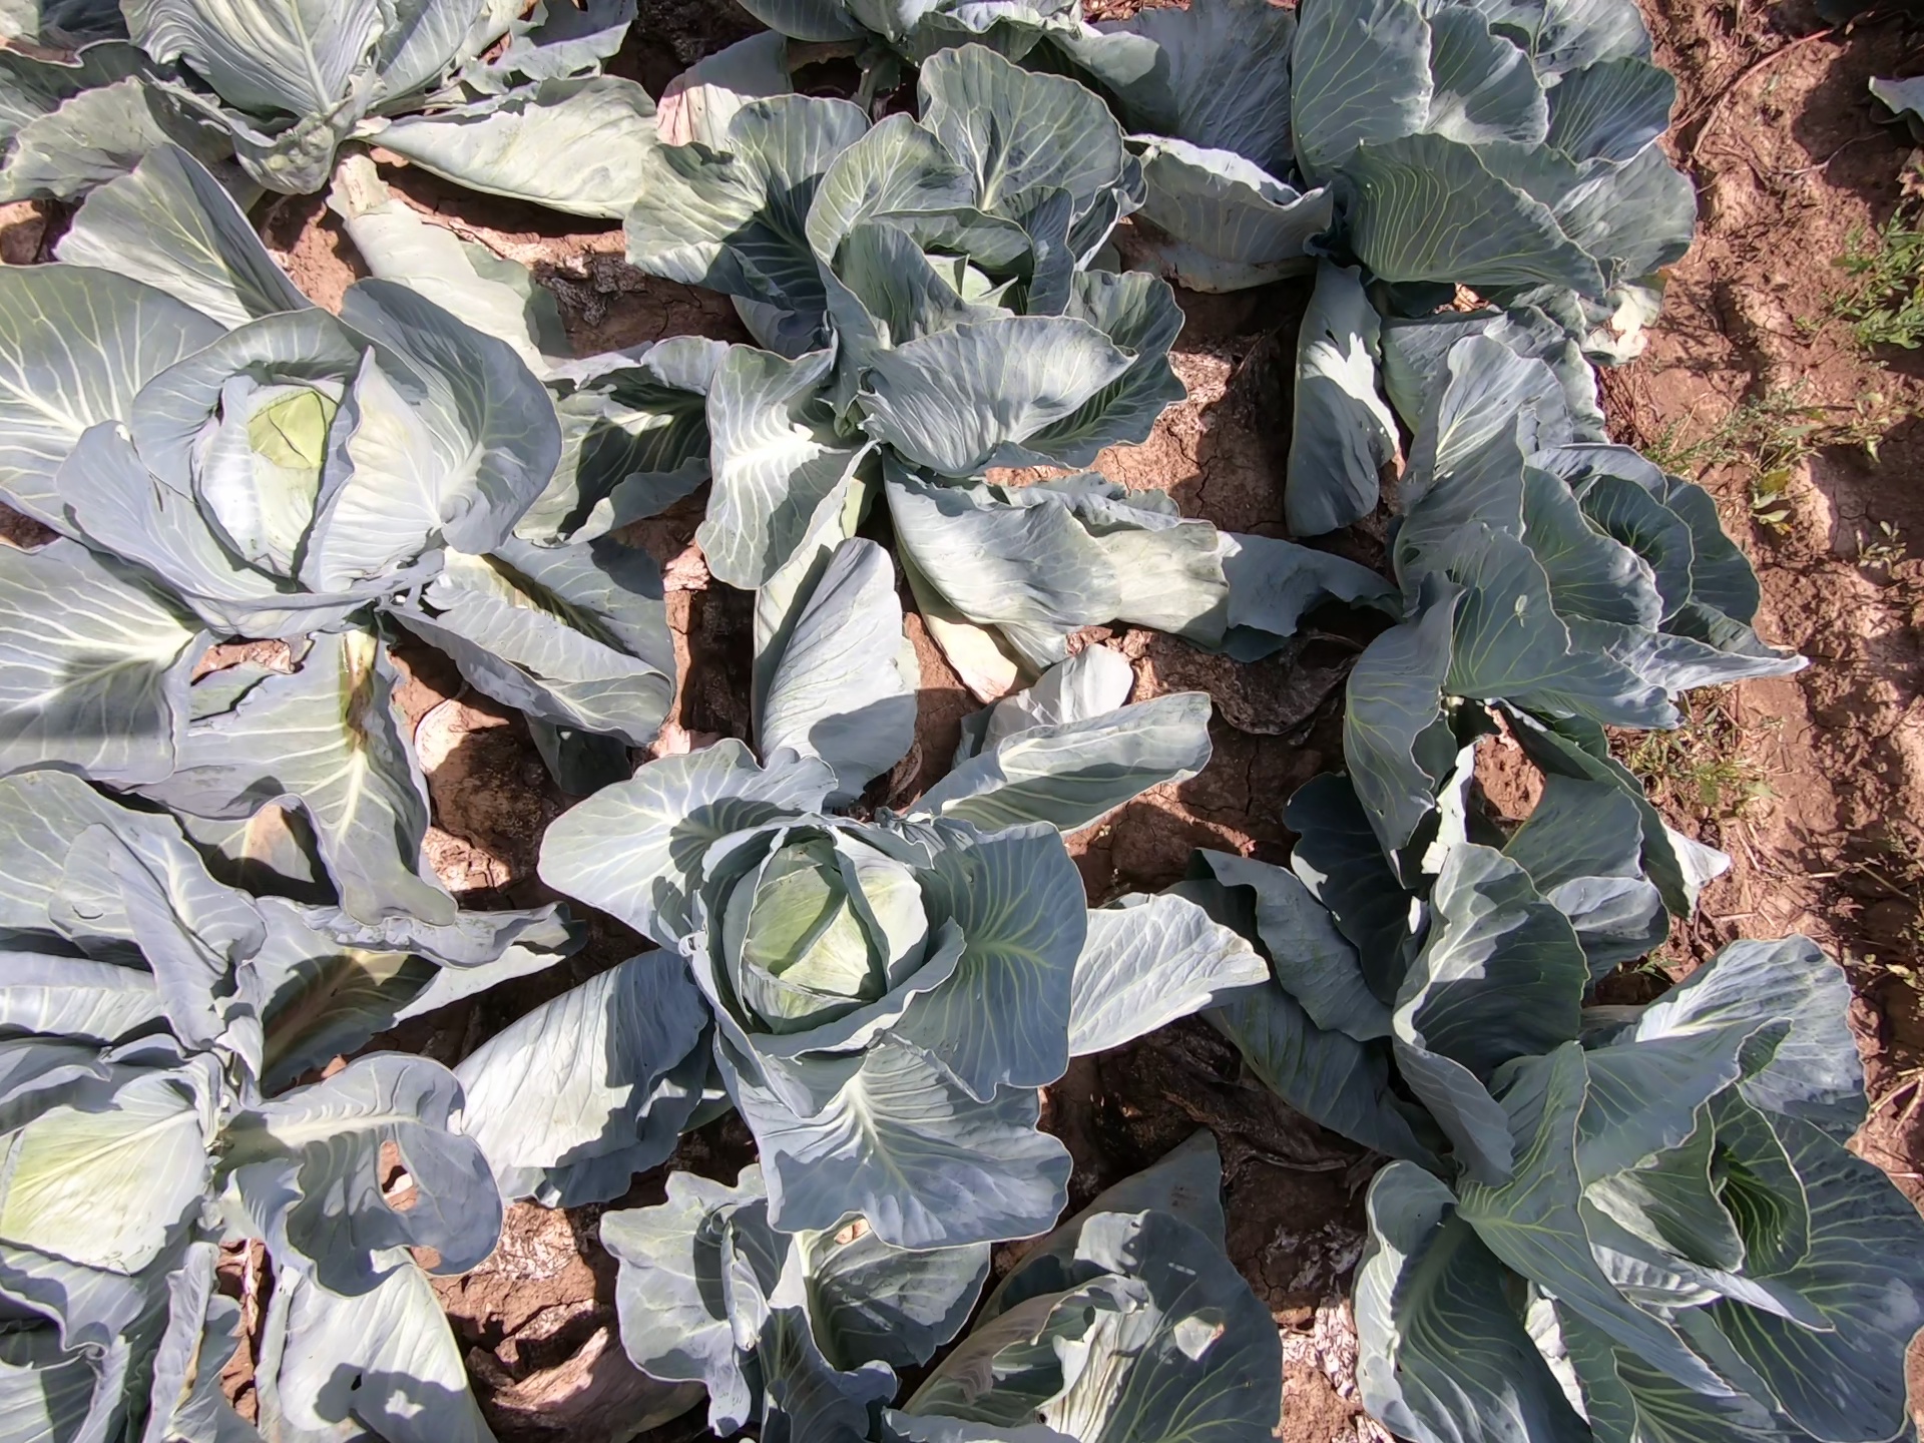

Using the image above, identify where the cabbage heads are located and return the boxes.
[1,1070,212,1288]
[1485,1090,1684,1281]
[731,840,926,1041]
[195,378,432,580]
[879,254,1006,392]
